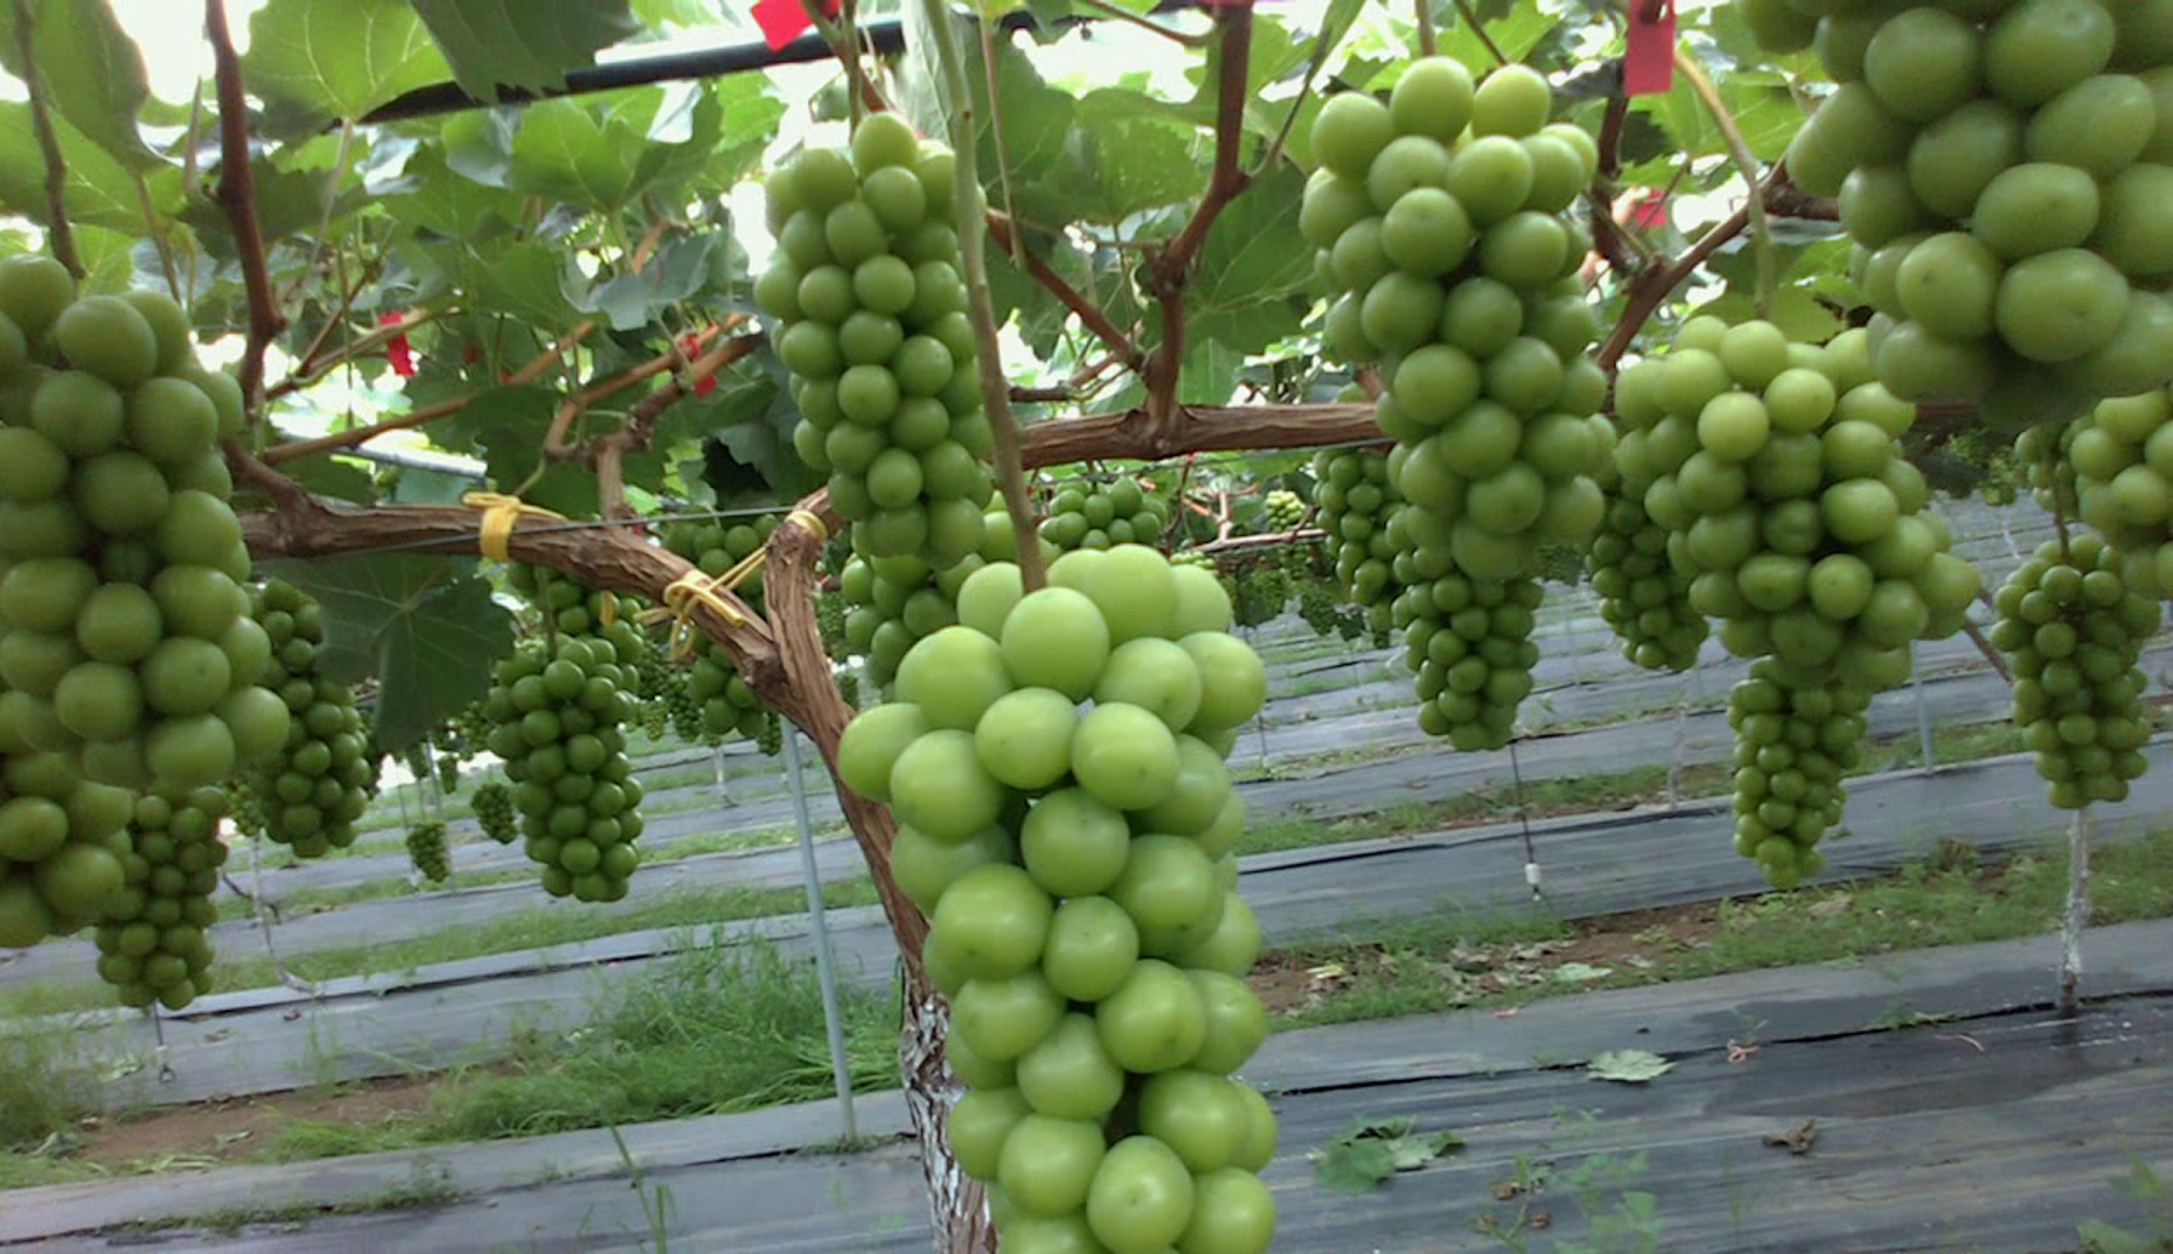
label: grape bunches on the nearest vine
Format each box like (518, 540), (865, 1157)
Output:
(1297, 57), (1612, 580)
(0, 256), (282, 791)
(1732, 0), (2171, 437)
(834, 543), (1276, 1252)
(1619, 312), (1980, 691)
(757, 110), (989, 571)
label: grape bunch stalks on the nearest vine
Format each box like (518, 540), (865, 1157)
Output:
(843, 0), (862, 131)
(1416, 0), (1433, 56)
(1679, 57), (1774, 317)
(12, 0), (80, 275)
(925, 0), (1046, 594)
